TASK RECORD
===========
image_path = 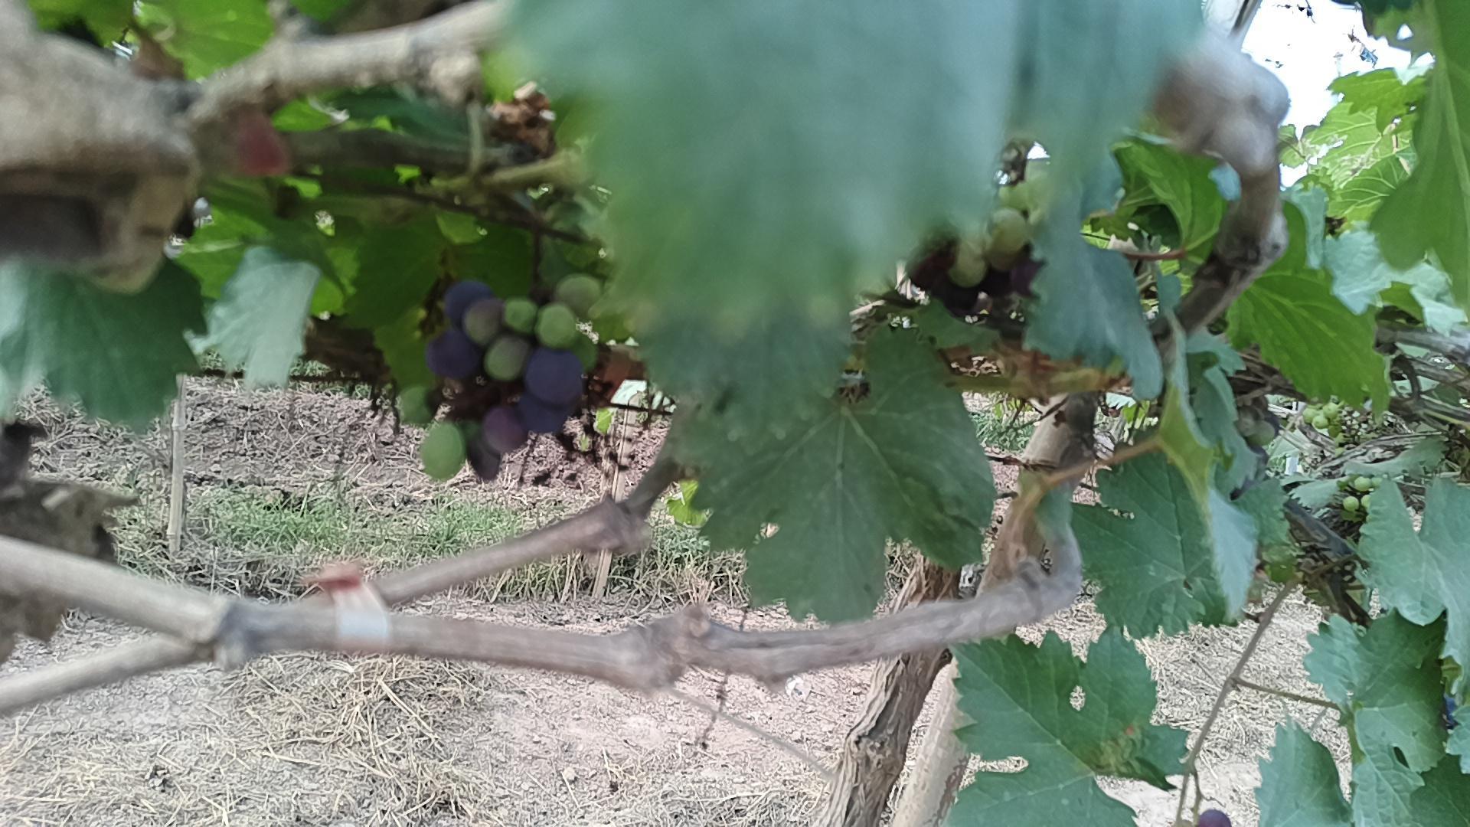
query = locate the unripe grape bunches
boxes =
[1339,472,1382,521]
[1300,397,1349,457]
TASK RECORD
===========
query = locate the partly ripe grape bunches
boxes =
[1230,396,1280,501]
[398,273,600,481]
[906,142,1042,315]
